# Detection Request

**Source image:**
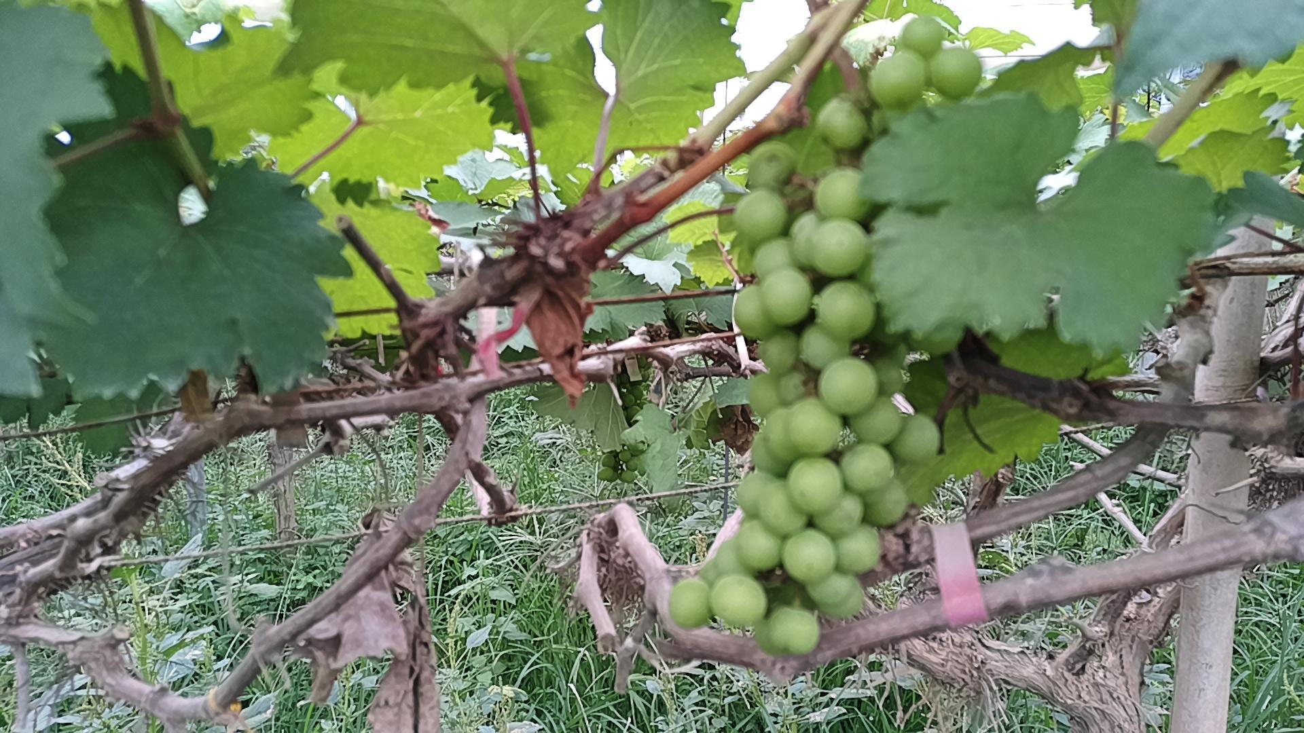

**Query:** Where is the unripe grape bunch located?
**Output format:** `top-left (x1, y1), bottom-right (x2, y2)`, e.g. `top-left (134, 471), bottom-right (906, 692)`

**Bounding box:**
top-left (673, 18), bottom-right (981, 655)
